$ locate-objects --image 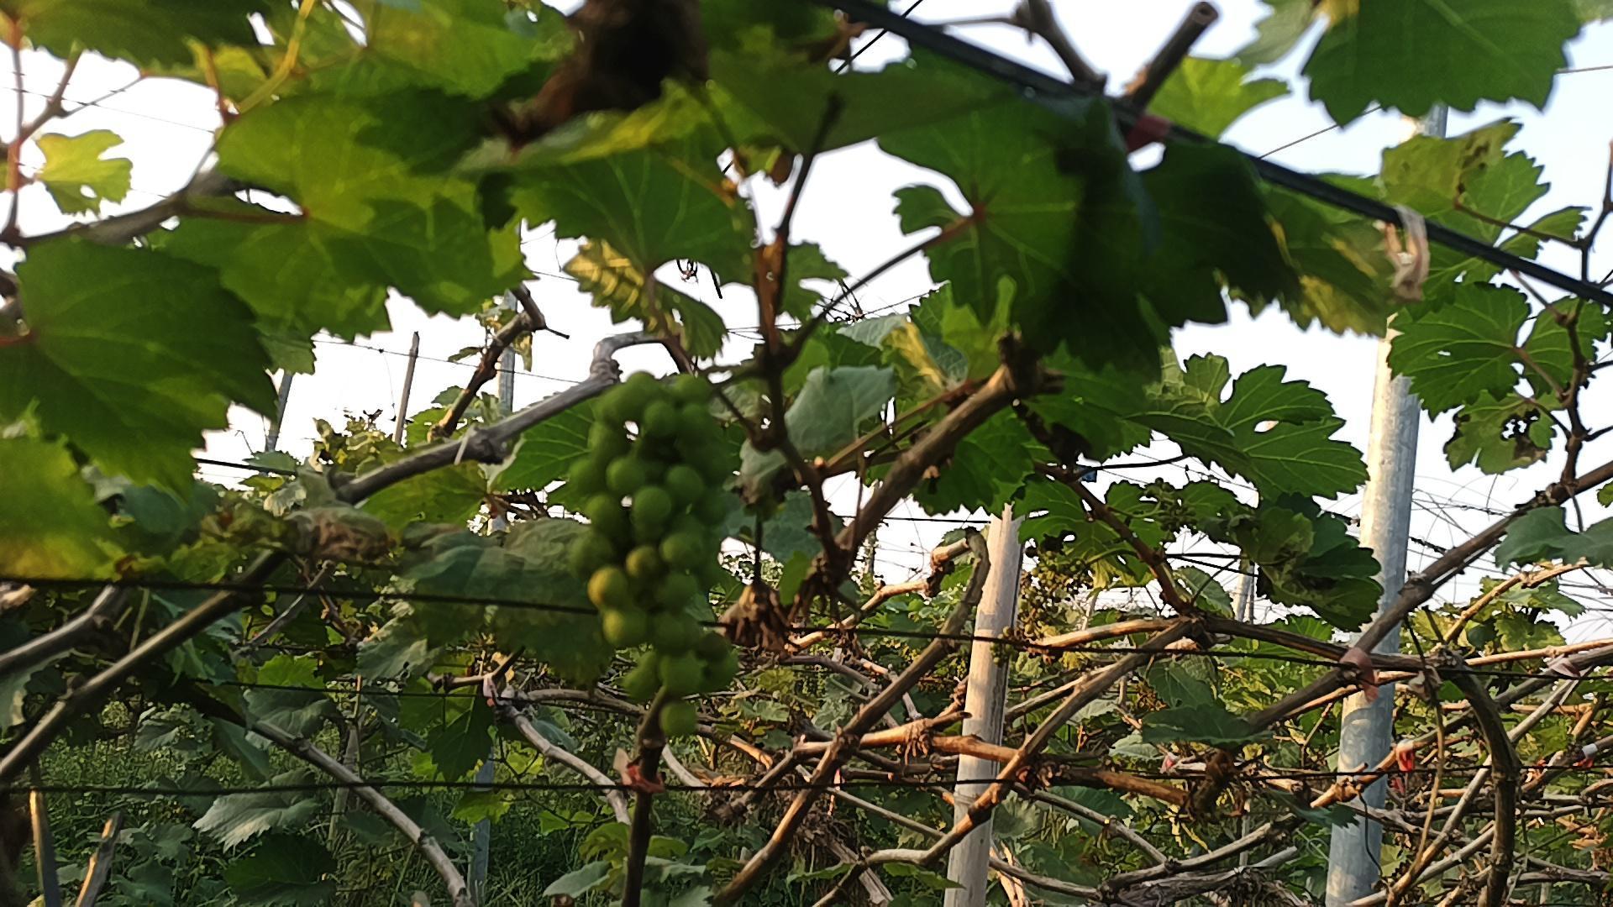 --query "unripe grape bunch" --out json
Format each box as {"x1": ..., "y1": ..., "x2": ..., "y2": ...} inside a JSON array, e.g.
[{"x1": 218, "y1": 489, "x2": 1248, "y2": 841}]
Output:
[{"x1": 554, "y1": 372, "x2": 737, "y2": 735}]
